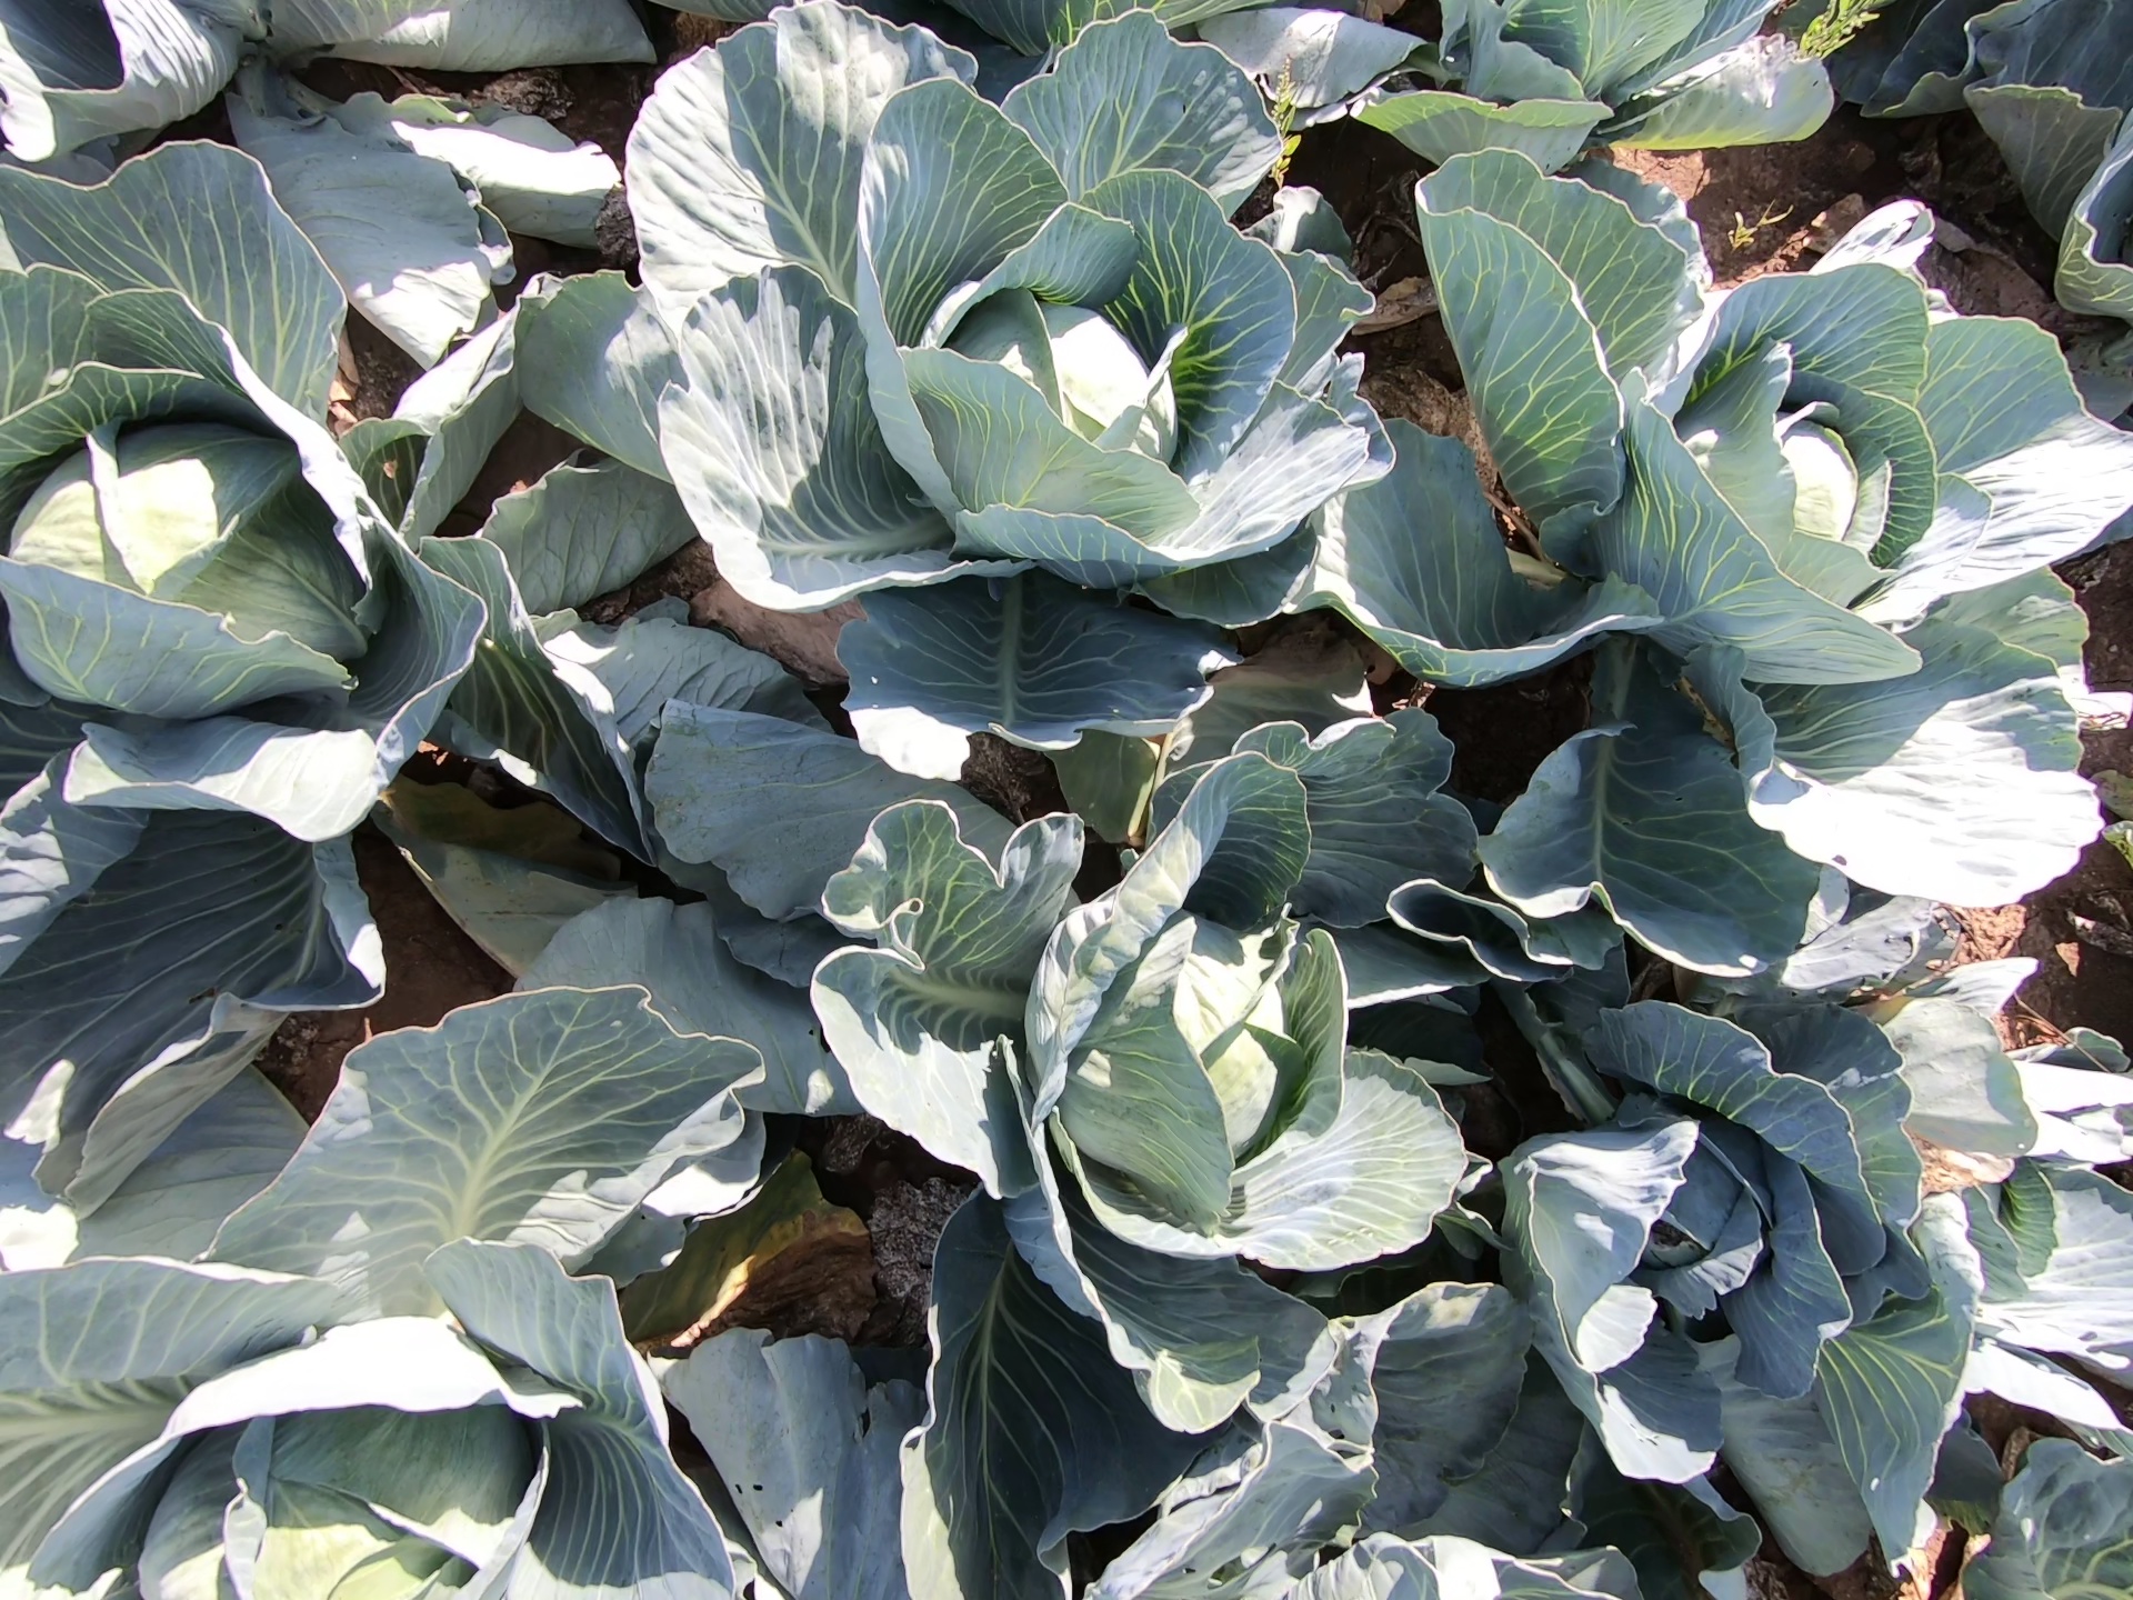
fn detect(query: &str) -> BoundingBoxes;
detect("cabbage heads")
[1619,1128,1765,1287]
[138,1337,523,1598]
[1673,408,1872,633]
[1050,906,1292,1178]
[934,301,1161,512]
[14,414,374,707]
